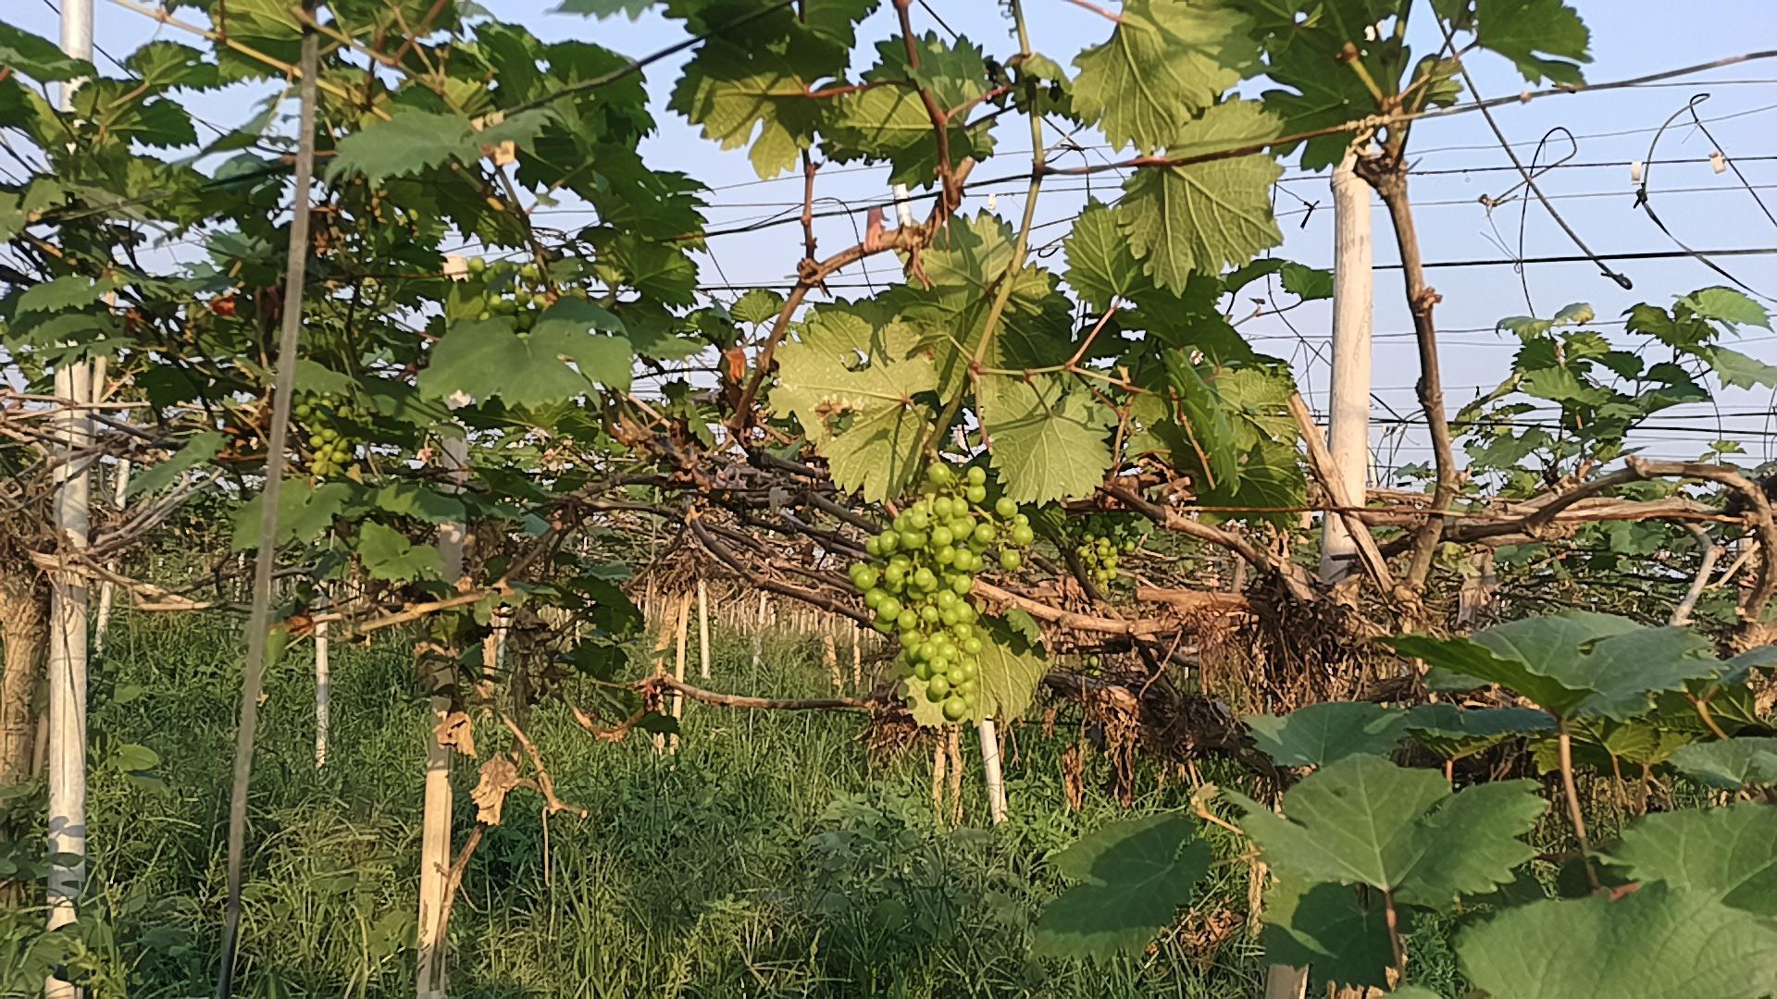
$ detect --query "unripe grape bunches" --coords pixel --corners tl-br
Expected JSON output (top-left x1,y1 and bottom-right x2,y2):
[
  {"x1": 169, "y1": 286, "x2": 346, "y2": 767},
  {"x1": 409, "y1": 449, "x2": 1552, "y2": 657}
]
[
  {"x1": 849, "y1": 463, "x2": 1034, "y2": 721},
  {"x1": 292, "y1": 391, "x2": 362, "y2": 477},
  {"x1": 1061, "y1": 510, "x2": 1144, "y2": 595}
]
